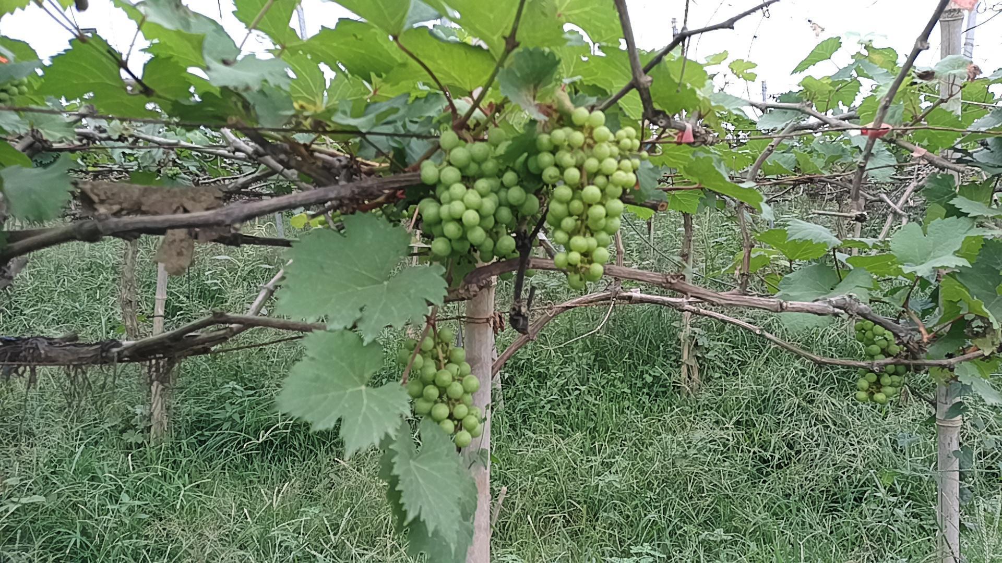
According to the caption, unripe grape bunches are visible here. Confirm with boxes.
[0,78,28,102]
[419,128,539,263]
[396,328,483,450]
[854,319,910,404]
[529,107,646,289]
